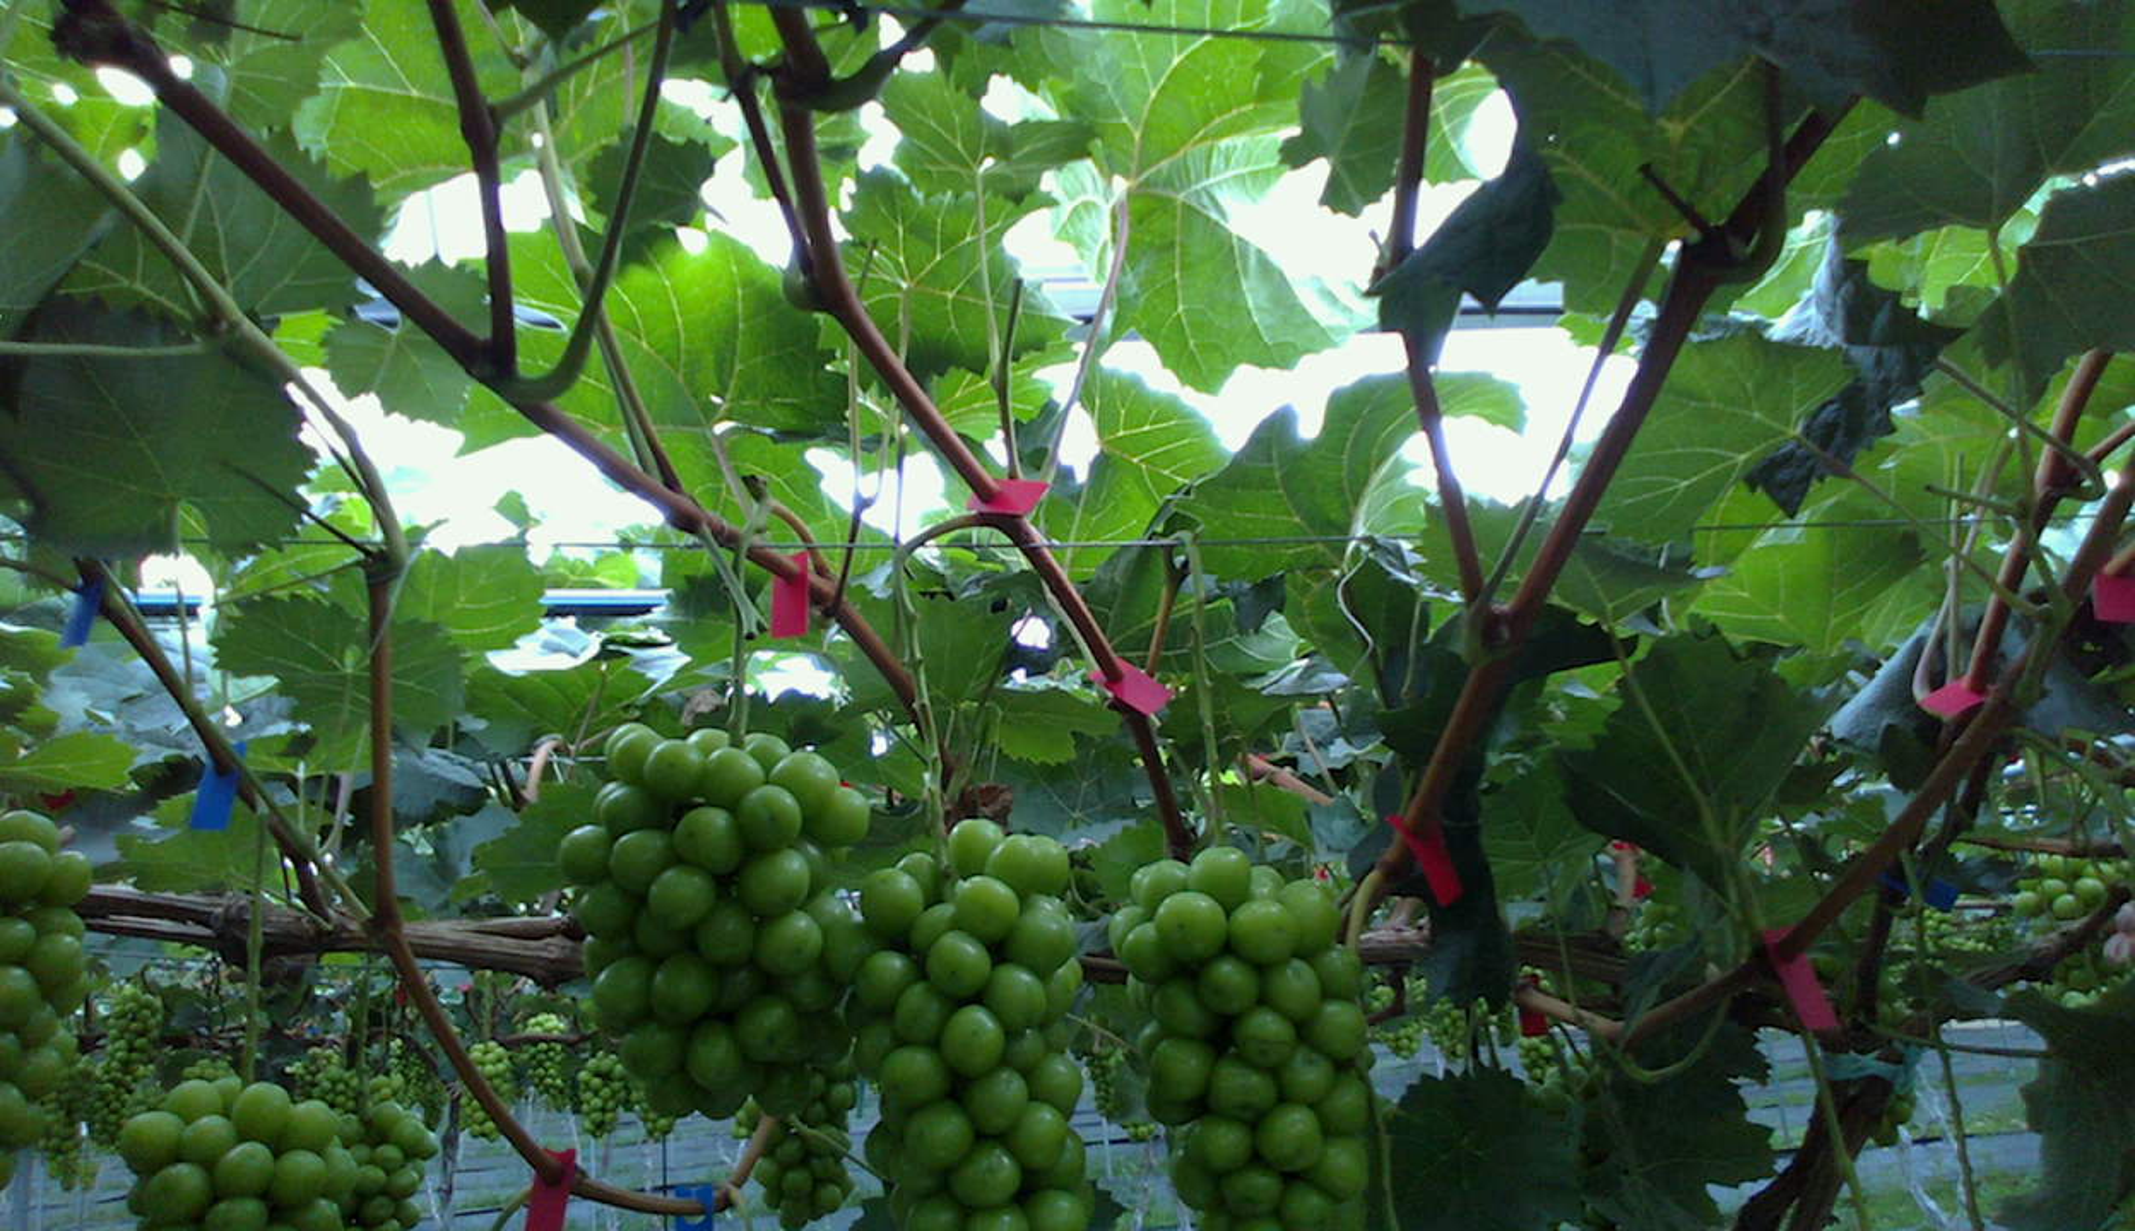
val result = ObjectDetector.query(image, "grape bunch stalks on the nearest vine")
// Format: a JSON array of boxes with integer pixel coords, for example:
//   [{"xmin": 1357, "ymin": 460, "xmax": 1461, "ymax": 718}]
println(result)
[
  {"xmin": 890, "ymin": 523, "xmax": 953, "ymax": 899},
  {"xmin": 1175, "ymin": 530, "xmax": 1225, "ymax": 841},
  {"xmin": 727, "ymin": 609, "xmax": 748, "ymax": 747},
  {"xmin": 241, "ymin": 807, "xmax": 265, "ymax": 1082}
]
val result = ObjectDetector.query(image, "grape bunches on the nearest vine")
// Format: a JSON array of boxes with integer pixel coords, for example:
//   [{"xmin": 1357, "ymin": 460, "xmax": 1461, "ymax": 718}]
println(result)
[
  {"xmin": 1110, "ymin": 846, "xmax": 1369, "ymax": 1229},
  {"xmin": 123, "ymin": 1079, "xmax": 359, "ymax": 1229},
  {"xmin": 556, "ymin": 723, "xmax": 869, "ymax": 1123},
  {"xmin": 830, "ymin": 822, "xmax": 1095, "ymax": 1228}
]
